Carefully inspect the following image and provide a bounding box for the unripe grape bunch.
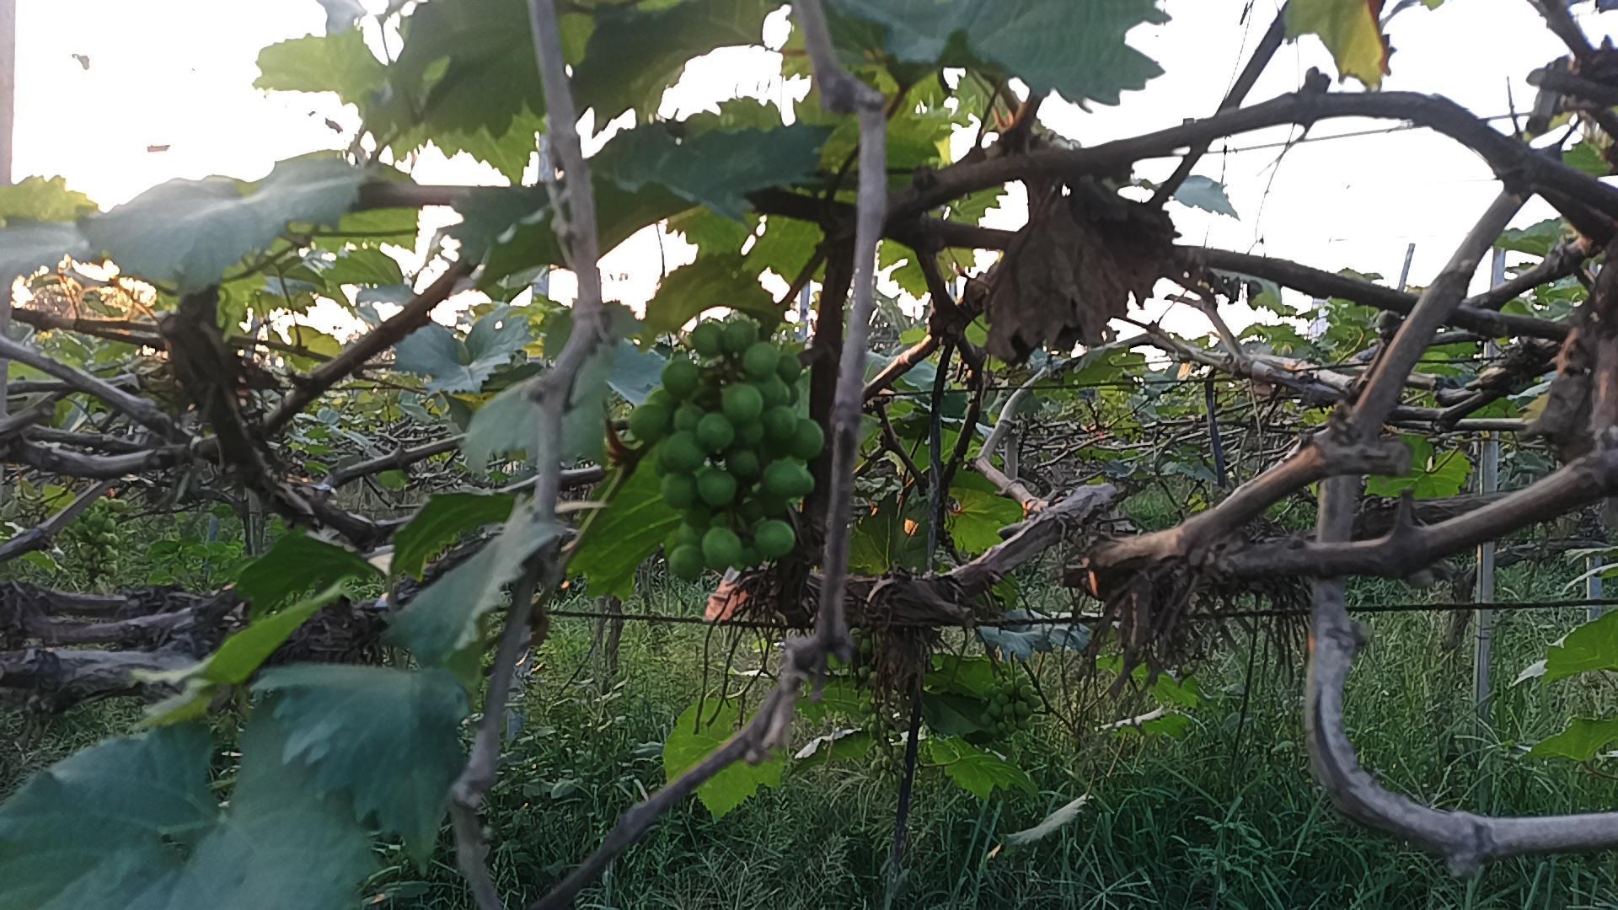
[628,318,822,578]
